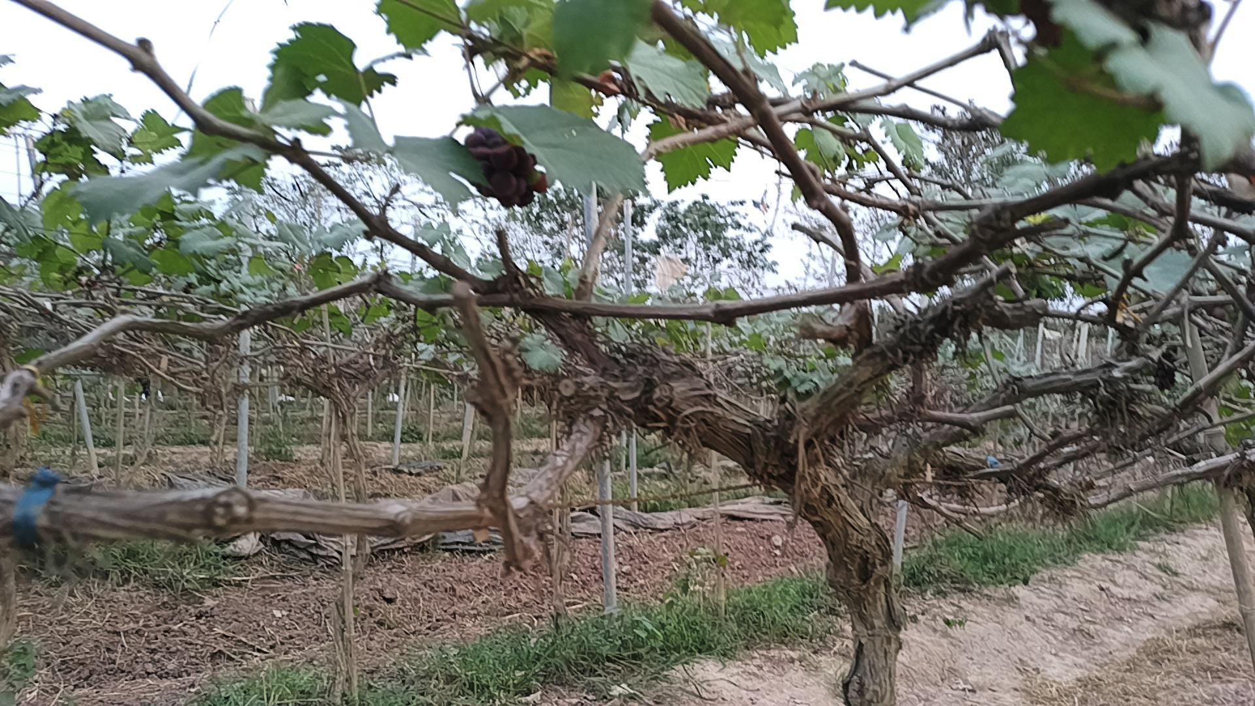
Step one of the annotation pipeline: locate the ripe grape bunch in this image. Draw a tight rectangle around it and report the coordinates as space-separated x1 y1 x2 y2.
1150 344 1179 392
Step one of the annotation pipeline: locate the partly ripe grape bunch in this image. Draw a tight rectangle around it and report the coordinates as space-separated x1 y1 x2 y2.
464 126 548 207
